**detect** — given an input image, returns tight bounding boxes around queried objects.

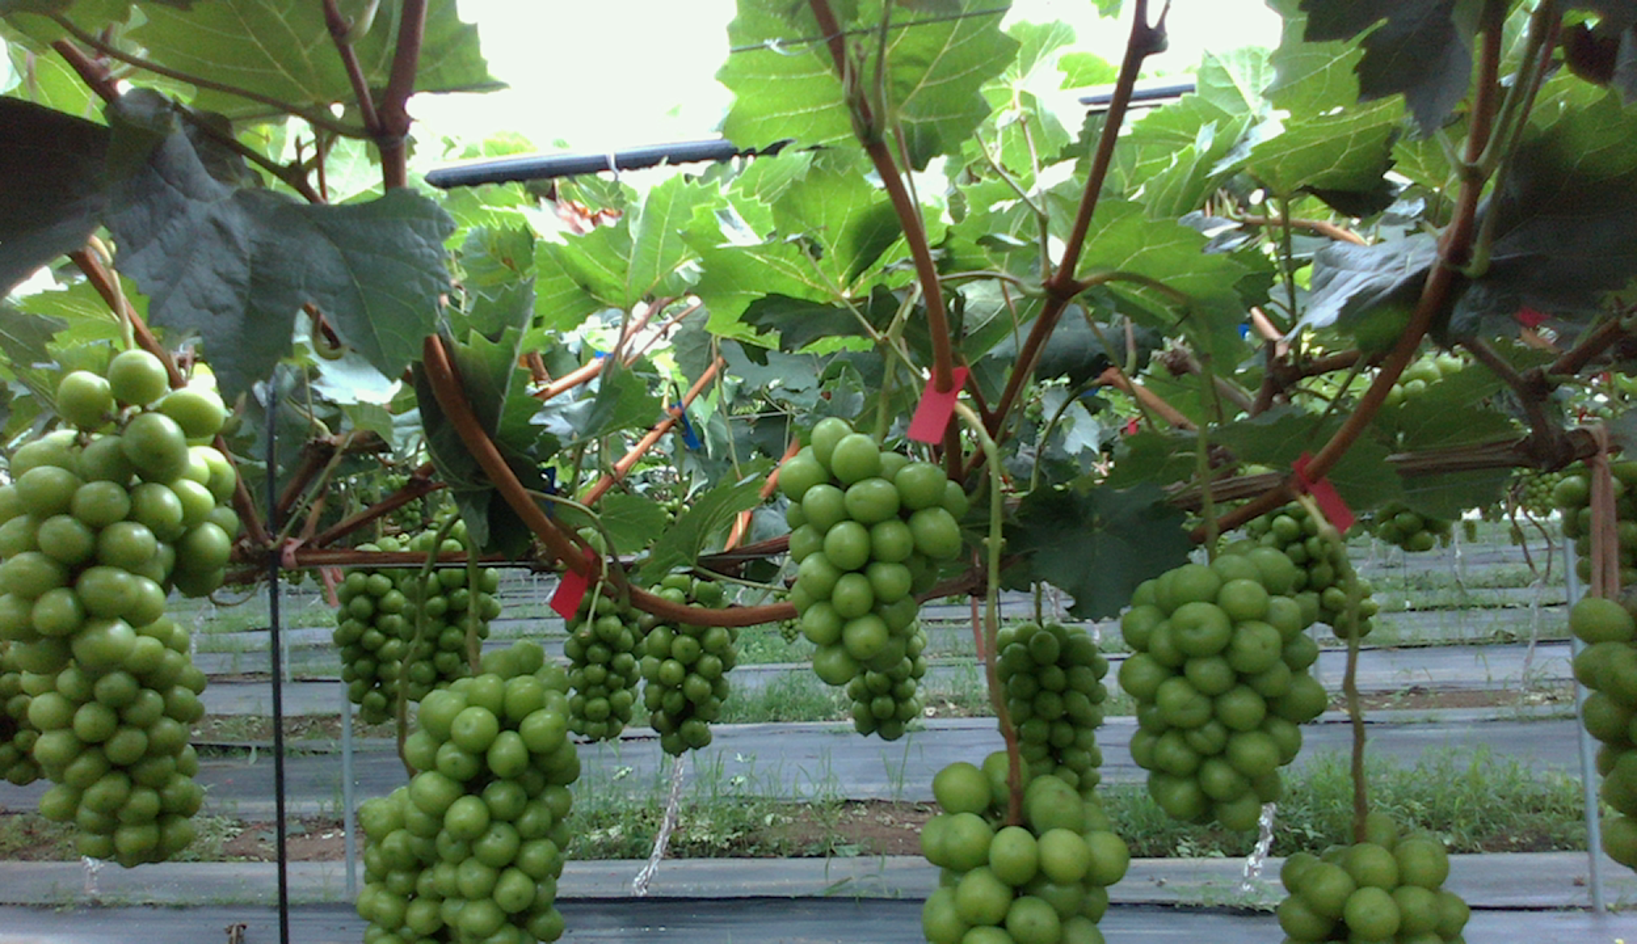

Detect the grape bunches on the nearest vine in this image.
[920,750,1128,943]
[1276,812,1469,943]
[1,349,239,675]
[20,614,207,869]
[778,417,969,686]
[1120,540,1329,833]
[1565,583,1636,869]
[404,639,581,943]
[355,787,459,943]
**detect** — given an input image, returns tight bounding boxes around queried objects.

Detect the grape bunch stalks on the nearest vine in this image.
[956,406,1021,826]
[467,534,480,678]
[1293,490,1367,846]
[87,235,132,350]
[1073,270,1219,565]
[396,511,462,779]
